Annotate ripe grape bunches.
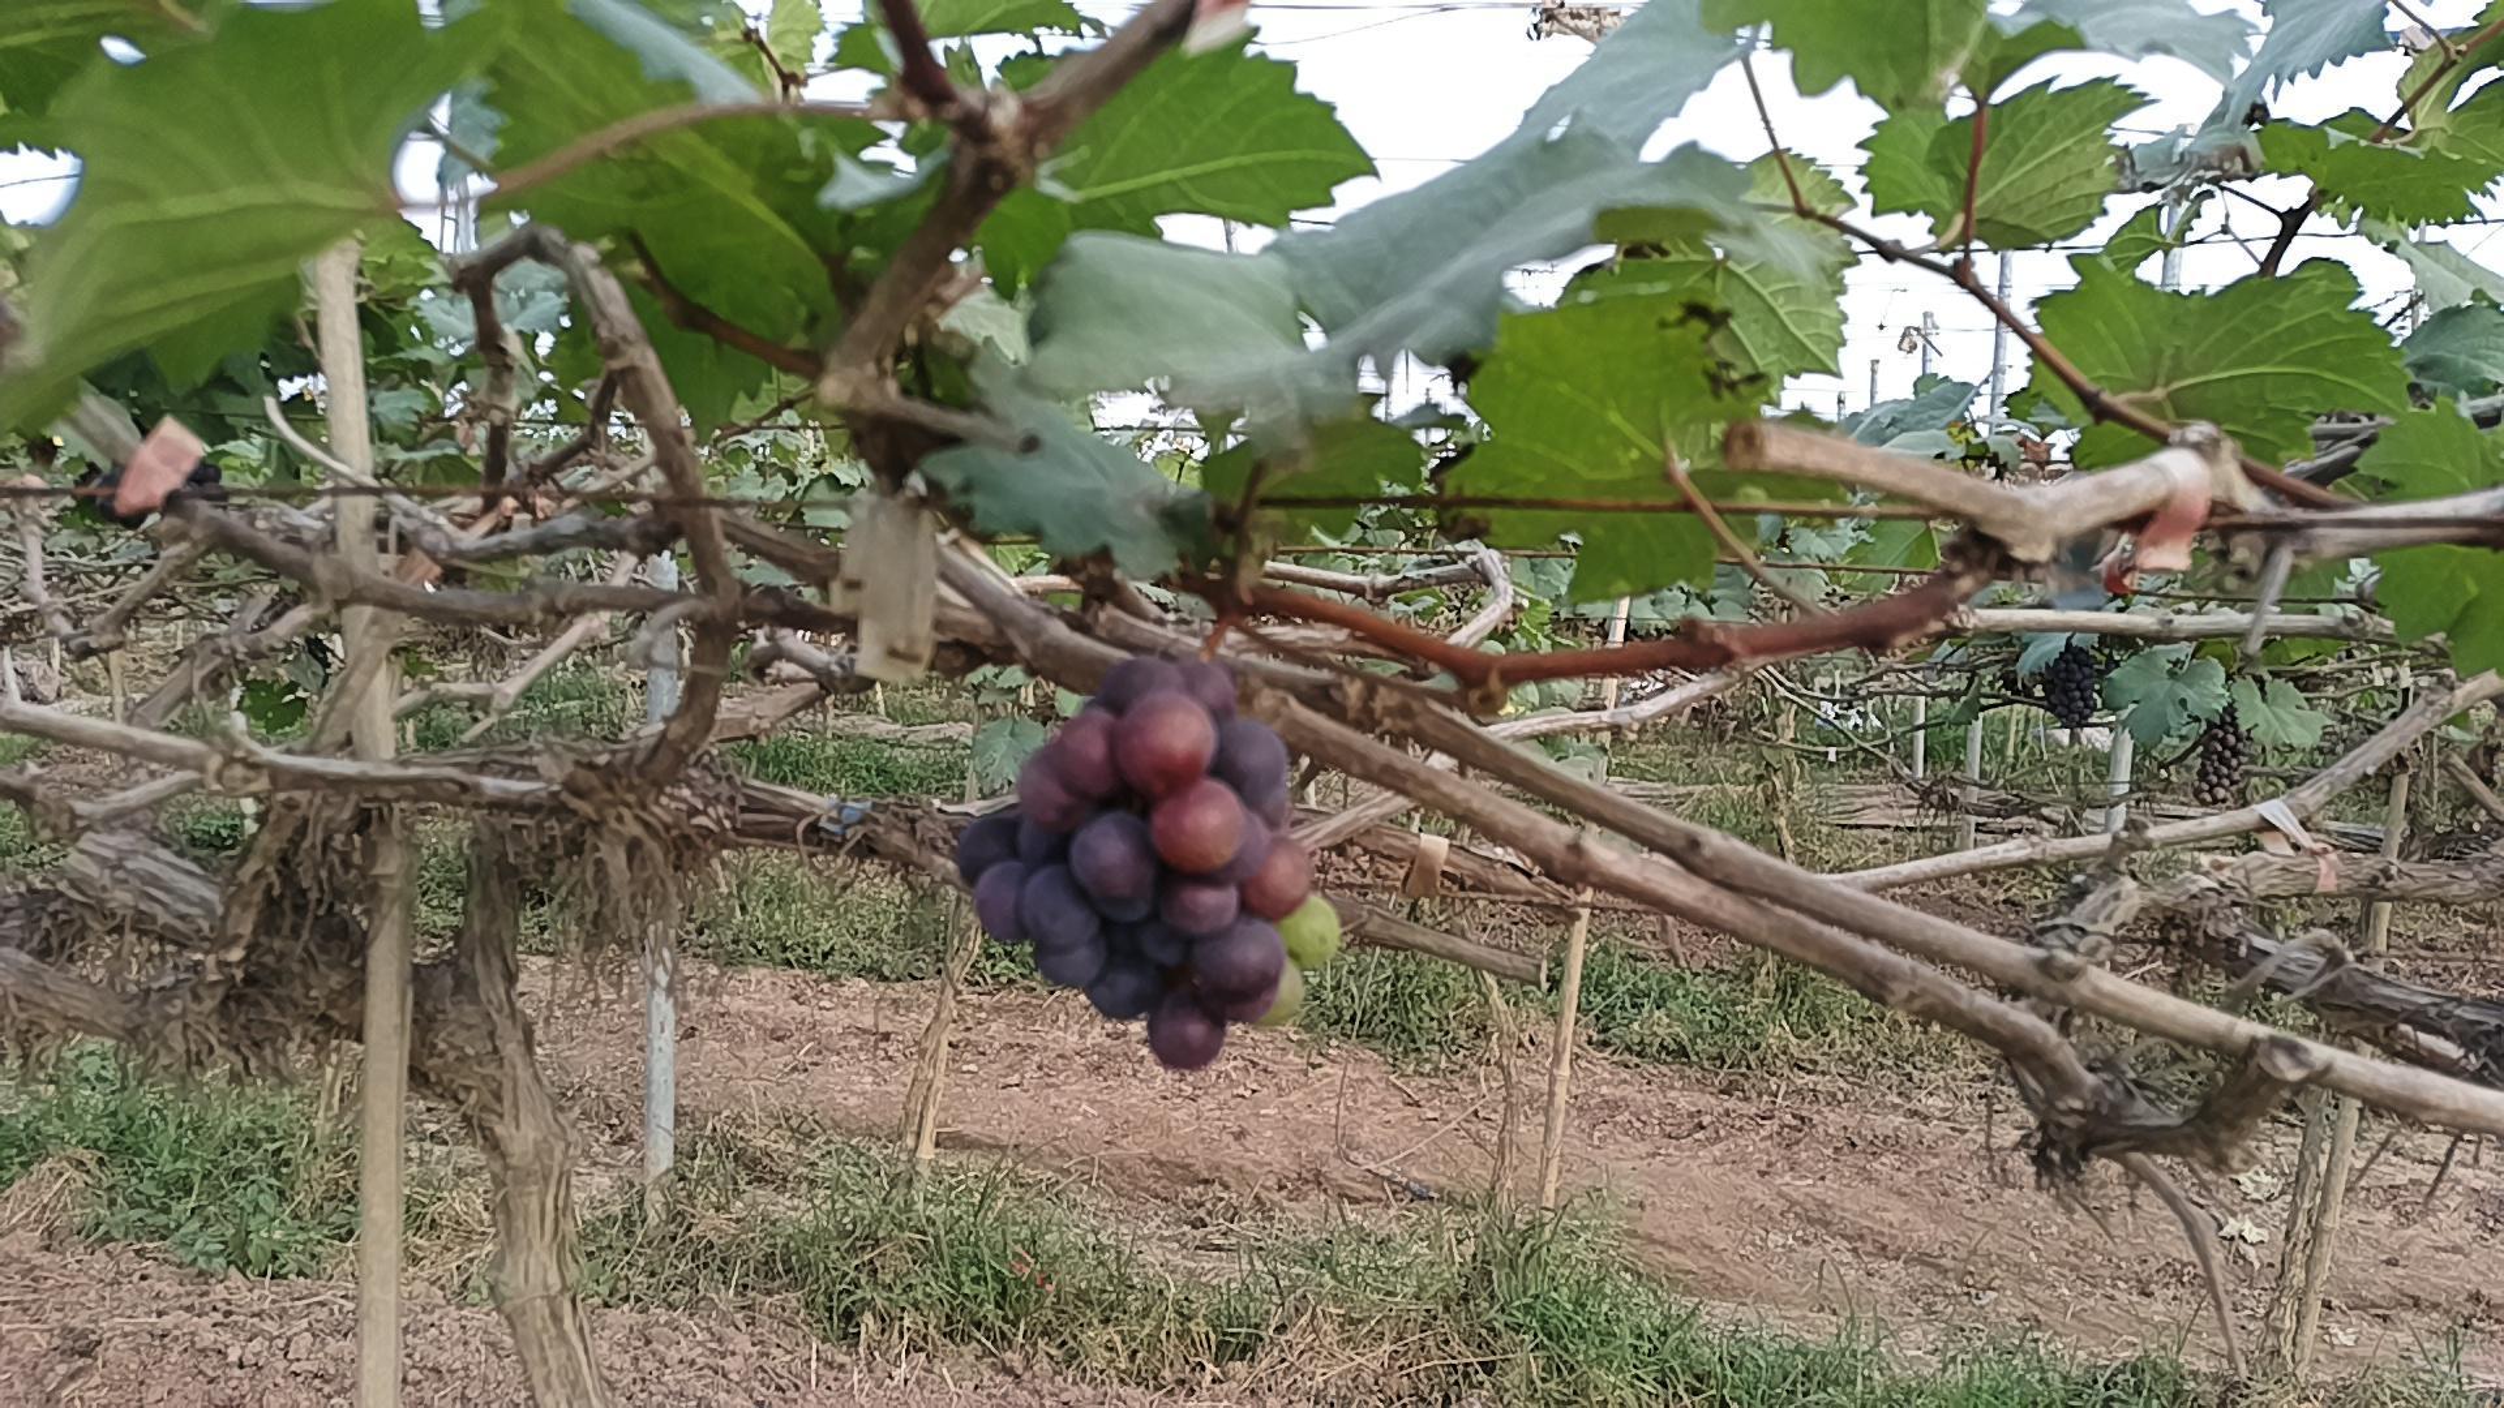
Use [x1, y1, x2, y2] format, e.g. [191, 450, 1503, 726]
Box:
[2029, 635, 2110, 731]
[2194, 695, 2267, 803]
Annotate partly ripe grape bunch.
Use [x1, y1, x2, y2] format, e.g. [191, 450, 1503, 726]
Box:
[956, 657, 1338, 1068]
